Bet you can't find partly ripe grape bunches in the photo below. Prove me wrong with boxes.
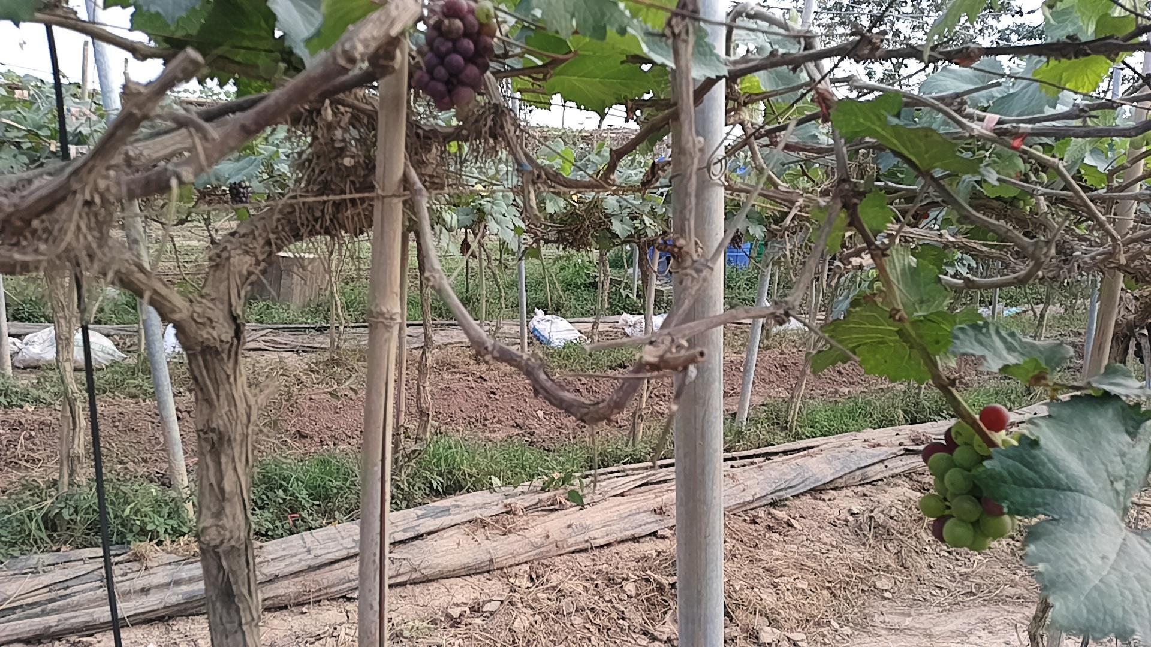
[412,0,496,110]
[919,404,1013,551]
